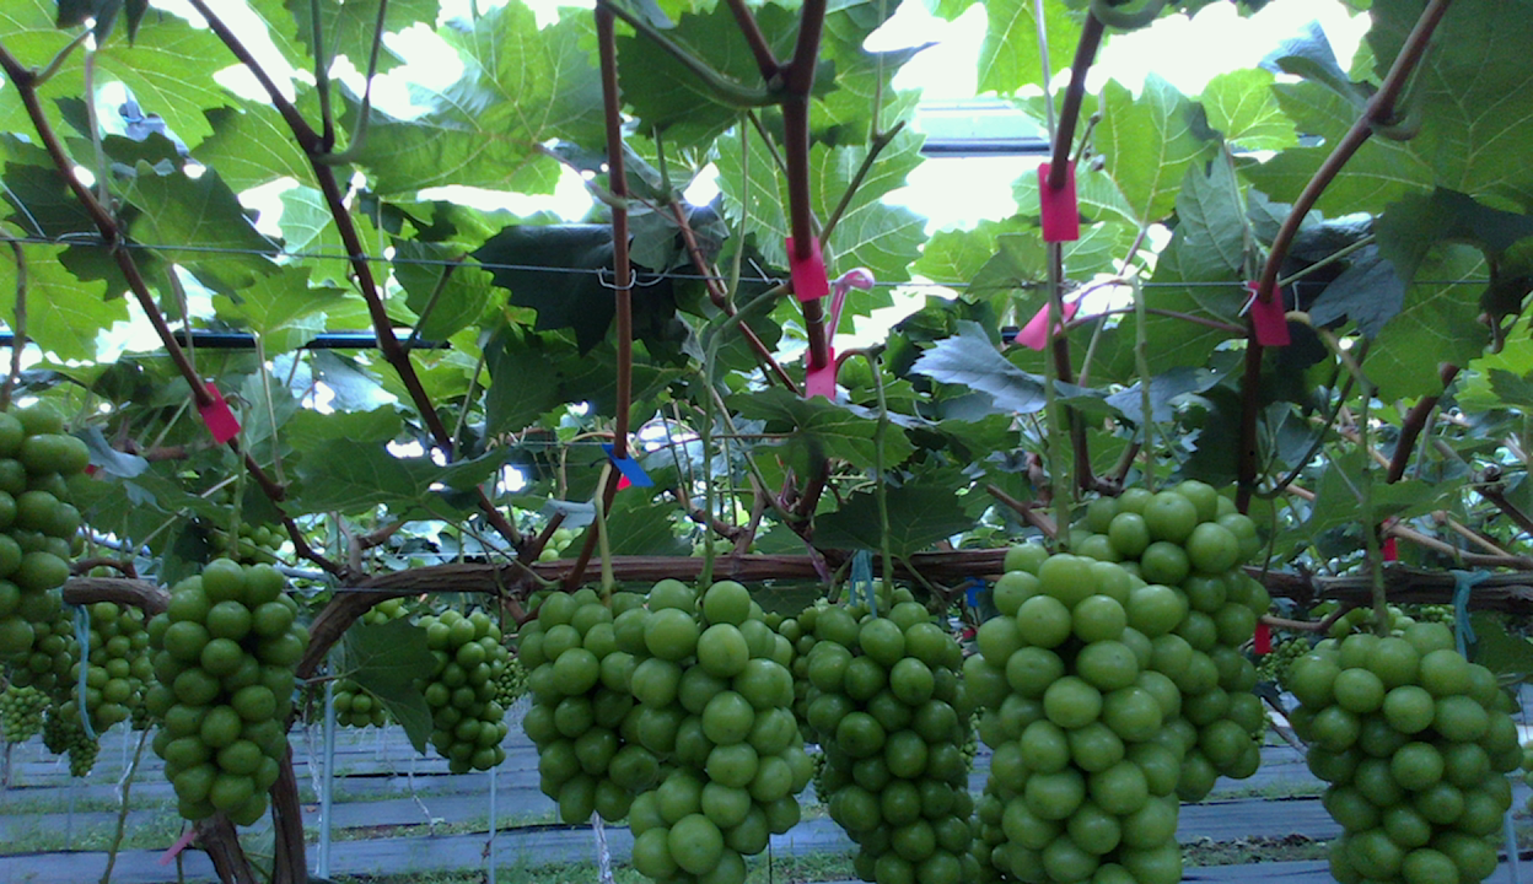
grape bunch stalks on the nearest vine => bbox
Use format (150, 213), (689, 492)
(1044, 243), (1070, 552)
(226, 392), (248, 561)
(840, 344), (894, 615)
(1080, 263), (1155, 491)
(0, 242), (27, 411)
(696, 286), (782, 588)
(591, 464), (620, 604)
(1318, 328), (1391, 635)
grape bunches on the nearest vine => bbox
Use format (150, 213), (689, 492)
(805, 589), (980, 883)
(142, 559), (311, 825)
(1289, 622), (1523, 883)
(612, 580), (813, 883)
(962, 541), (1192, 883)
(516, 588), (679, 828)
(1070, 480), (1273, 802)
(0, 395), (90, 661)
